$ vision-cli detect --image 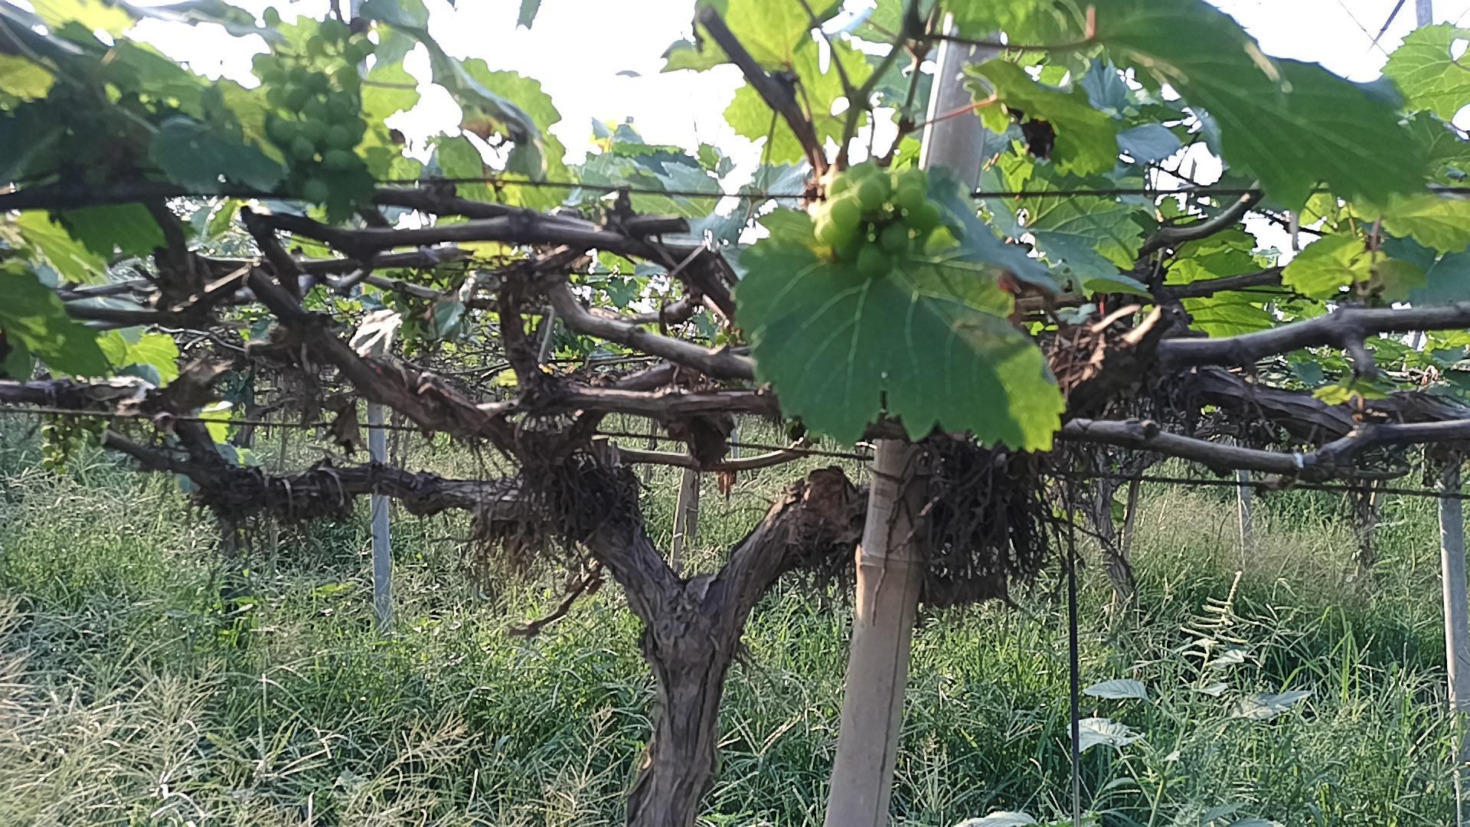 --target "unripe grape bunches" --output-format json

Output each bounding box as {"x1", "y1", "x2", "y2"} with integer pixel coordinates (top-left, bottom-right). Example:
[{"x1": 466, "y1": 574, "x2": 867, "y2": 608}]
[
  {"x1": 253, "y1": 54, "x2": 367, "y2": 202},
  {"x1": 812, "y1": 162, "x2": 950, "y2": 277}
]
